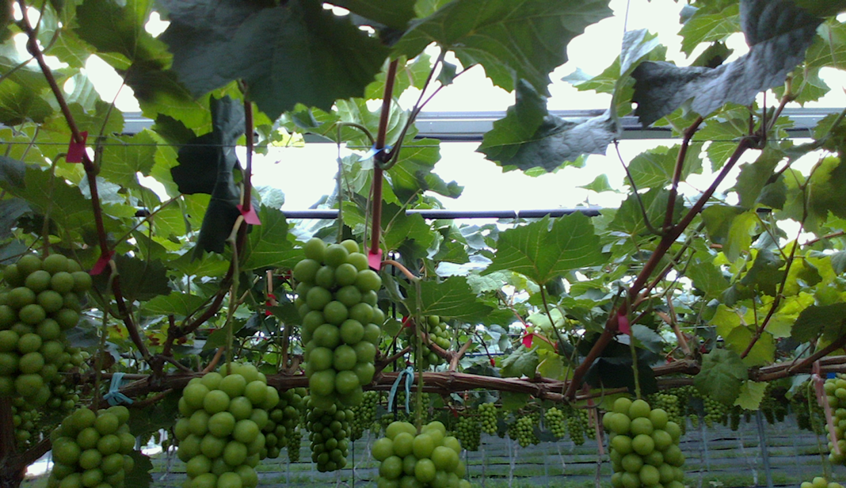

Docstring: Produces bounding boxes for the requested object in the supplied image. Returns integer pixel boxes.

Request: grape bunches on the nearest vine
[0,254,92,407]
[801,476,843,487]
[293,237,385,410]
[602,397,685,487]
[174,362,279,487]
[371,421,471,487]
[45,406,136,487]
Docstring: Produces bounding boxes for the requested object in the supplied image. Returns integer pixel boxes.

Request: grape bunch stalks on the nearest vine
[610,285,641,399]
[92,260,121,414]
[336,121,375,243]
[381,259,424,435]
[41,152,67,261]
[807,379,829,483]
[226,215,243,376]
